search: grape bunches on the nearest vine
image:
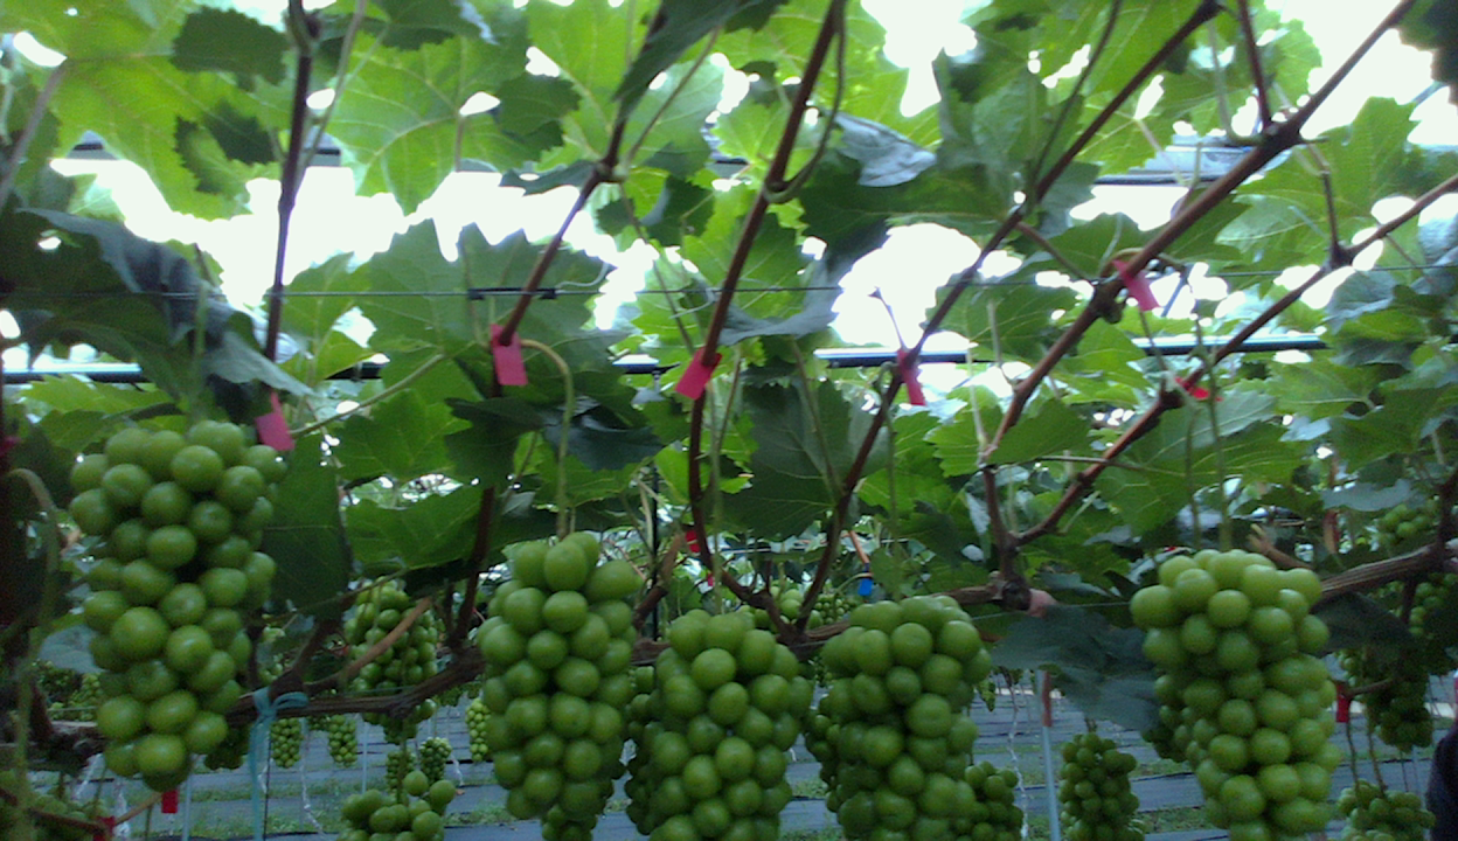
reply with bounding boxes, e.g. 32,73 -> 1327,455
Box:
71,418 -> 285,795
1131,549 -> 1340,840
822,595 -> 991,840
475,531 -> 637,822
640,611 -> 812,840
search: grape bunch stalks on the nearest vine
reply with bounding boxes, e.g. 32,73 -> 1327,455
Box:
527,341 -> 572,537
187,282 -> 210,425
1186,303 -> 1230,550
696,384 -> 722,612
874,362 -> 901,599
